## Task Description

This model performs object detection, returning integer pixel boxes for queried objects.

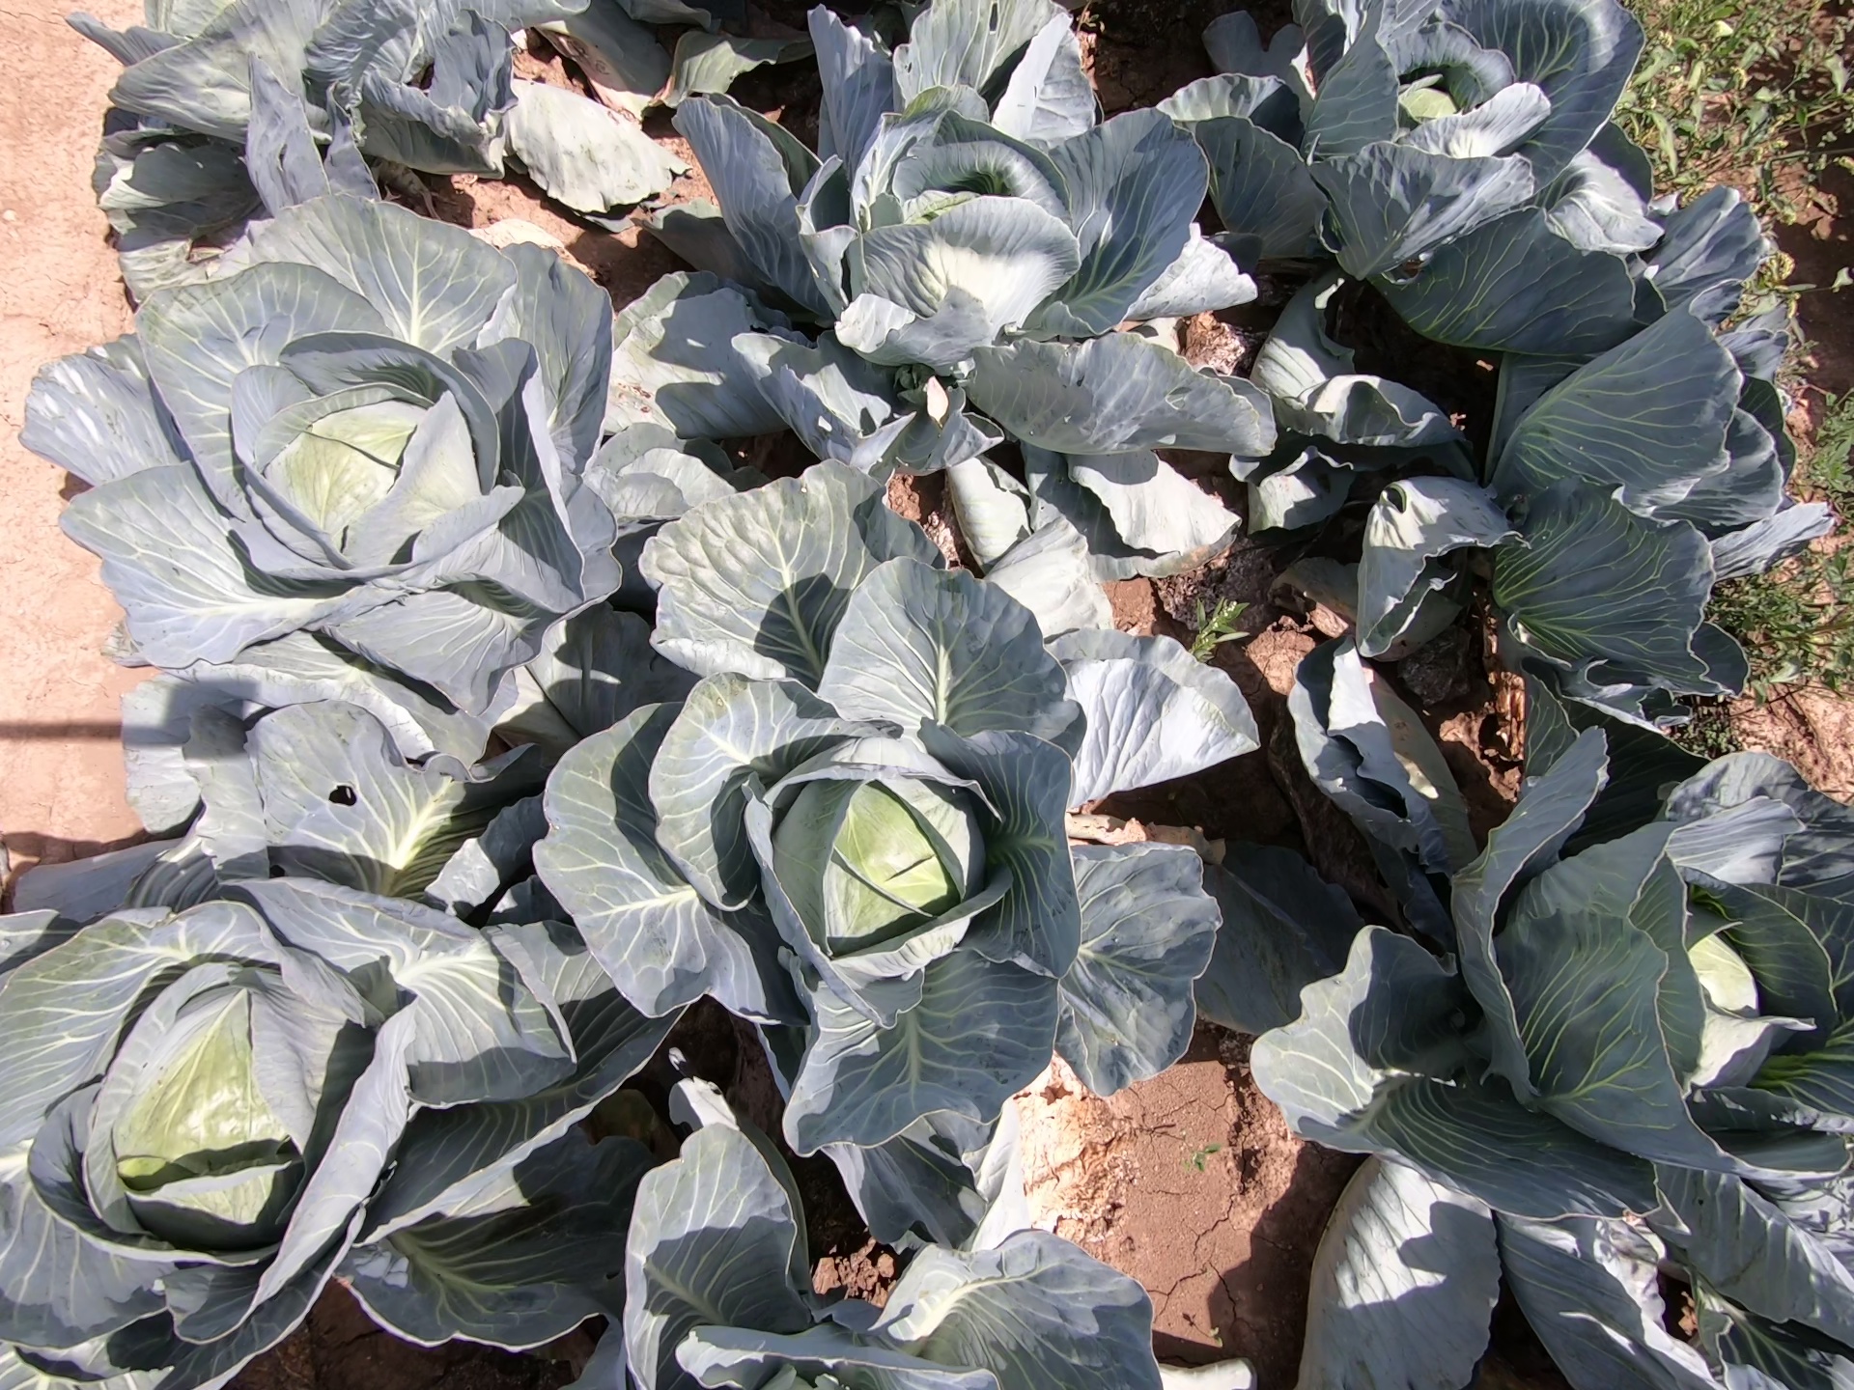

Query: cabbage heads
[89,966,395,1250]
[256,394,471,567]
[768,749,986,966]
[1368,83,1471,190]
[1524,899,1772,1123]
[889,191,1031,330]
